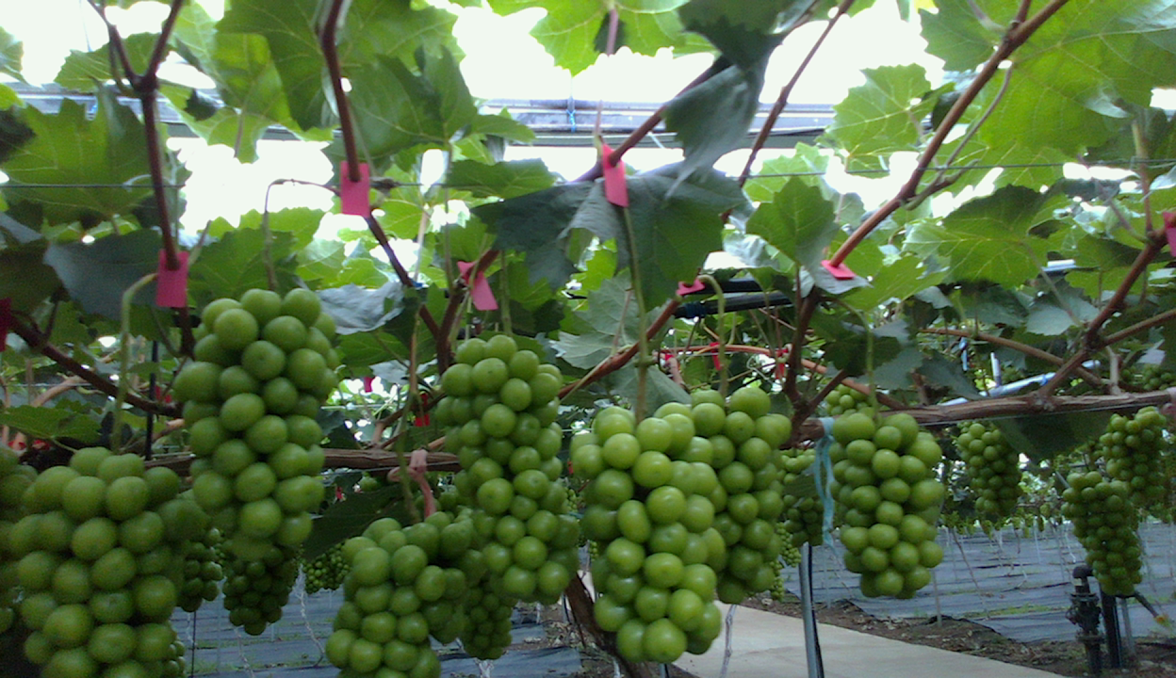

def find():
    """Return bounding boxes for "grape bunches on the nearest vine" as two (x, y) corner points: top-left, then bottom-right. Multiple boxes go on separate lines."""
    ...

(325, 513), (482, 677)
(828, 407), (945, 599)
(686, 386), (790, 605)
(173, 287), (339, 558)
(569, 402), (726, 663)
(436, 337), (582, 605)
(6, 448), (205, 677)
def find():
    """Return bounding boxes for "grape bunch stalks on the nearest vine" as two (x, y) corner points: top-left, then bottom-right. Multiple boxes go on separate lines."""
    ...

(614, 209), (658, 423)
(261, 179), (339, 292)
(111, 272), (155, 455)
(704, 275), (727, 398)
(499, 251), (513, 337)
(395, 336), (421, 523)
(827, 296), (880, 428)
